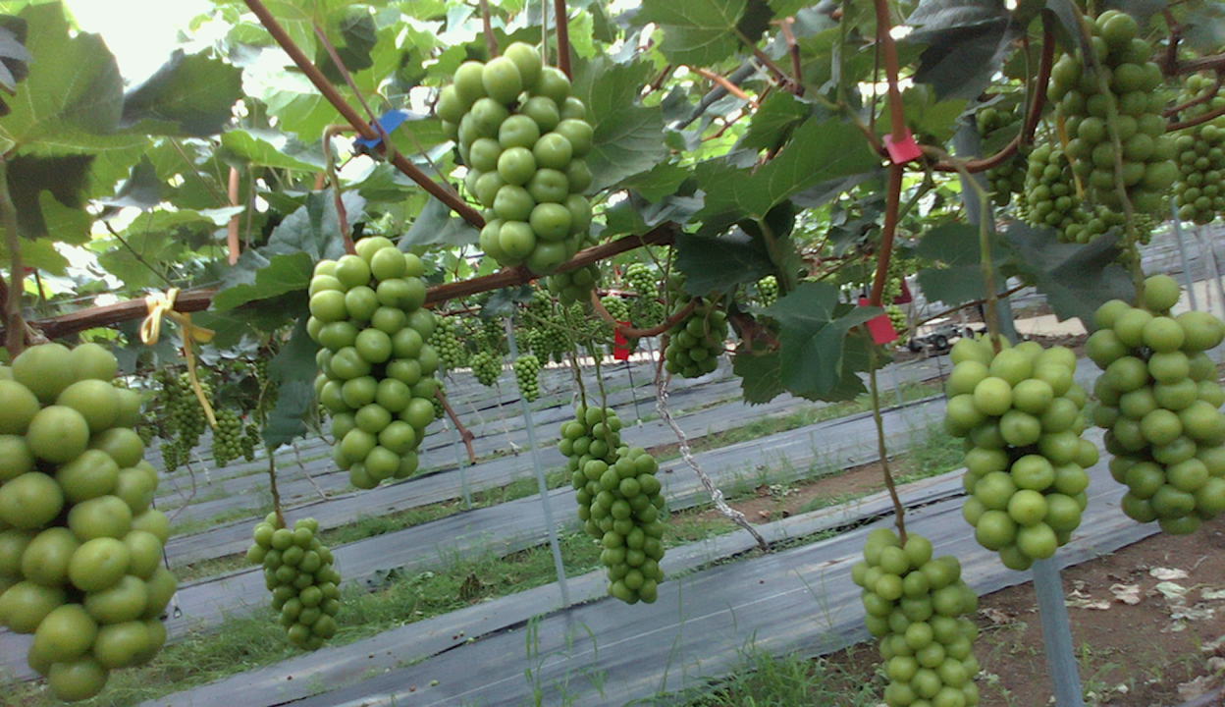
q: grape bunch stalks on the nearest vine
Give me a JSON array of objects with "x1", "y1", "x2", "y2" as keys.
[
  {"x1": 1071, "y1": 5, "x2": 1146, "y2": 306},
  {"x1": 929, "y1": 146, "x2": 1000, "y2": 353},
  {"x1": 322, "y1": 125, "x2": 358, "y2": 254},
  {"x1": 0, "y1": 161, "x2": 25, "y2": 355},
  {"x1": 857, "y1": 327, "x2": 908, "y2": 550},
  {"x1": 480, "y1": 1, "x2": 496, "y2": 56}
]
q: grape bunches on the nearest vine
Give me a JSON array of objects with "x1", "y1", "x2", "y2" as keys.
[
  {"x1": 438, "y1": 41, "x2": 594, "y2": 274},
  {"x1": 851, "y1": 527, "x2": 980, "y2": 706},
  {"x1": 0, "y1": 343, "x2": 177, "y2": 703},
  {"x1": 307, "y1": 236, "x2": 441, "y2": 489},
  {"x1": 1049, "y1": 11, "x2": 1180, "y2": 214},
  {"x1": 1085, "y1": 275, "x2": 1224, "y2": 537},
  {"x1": 942, "y1": 334, "x2": 1096, "y2": 569}
]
